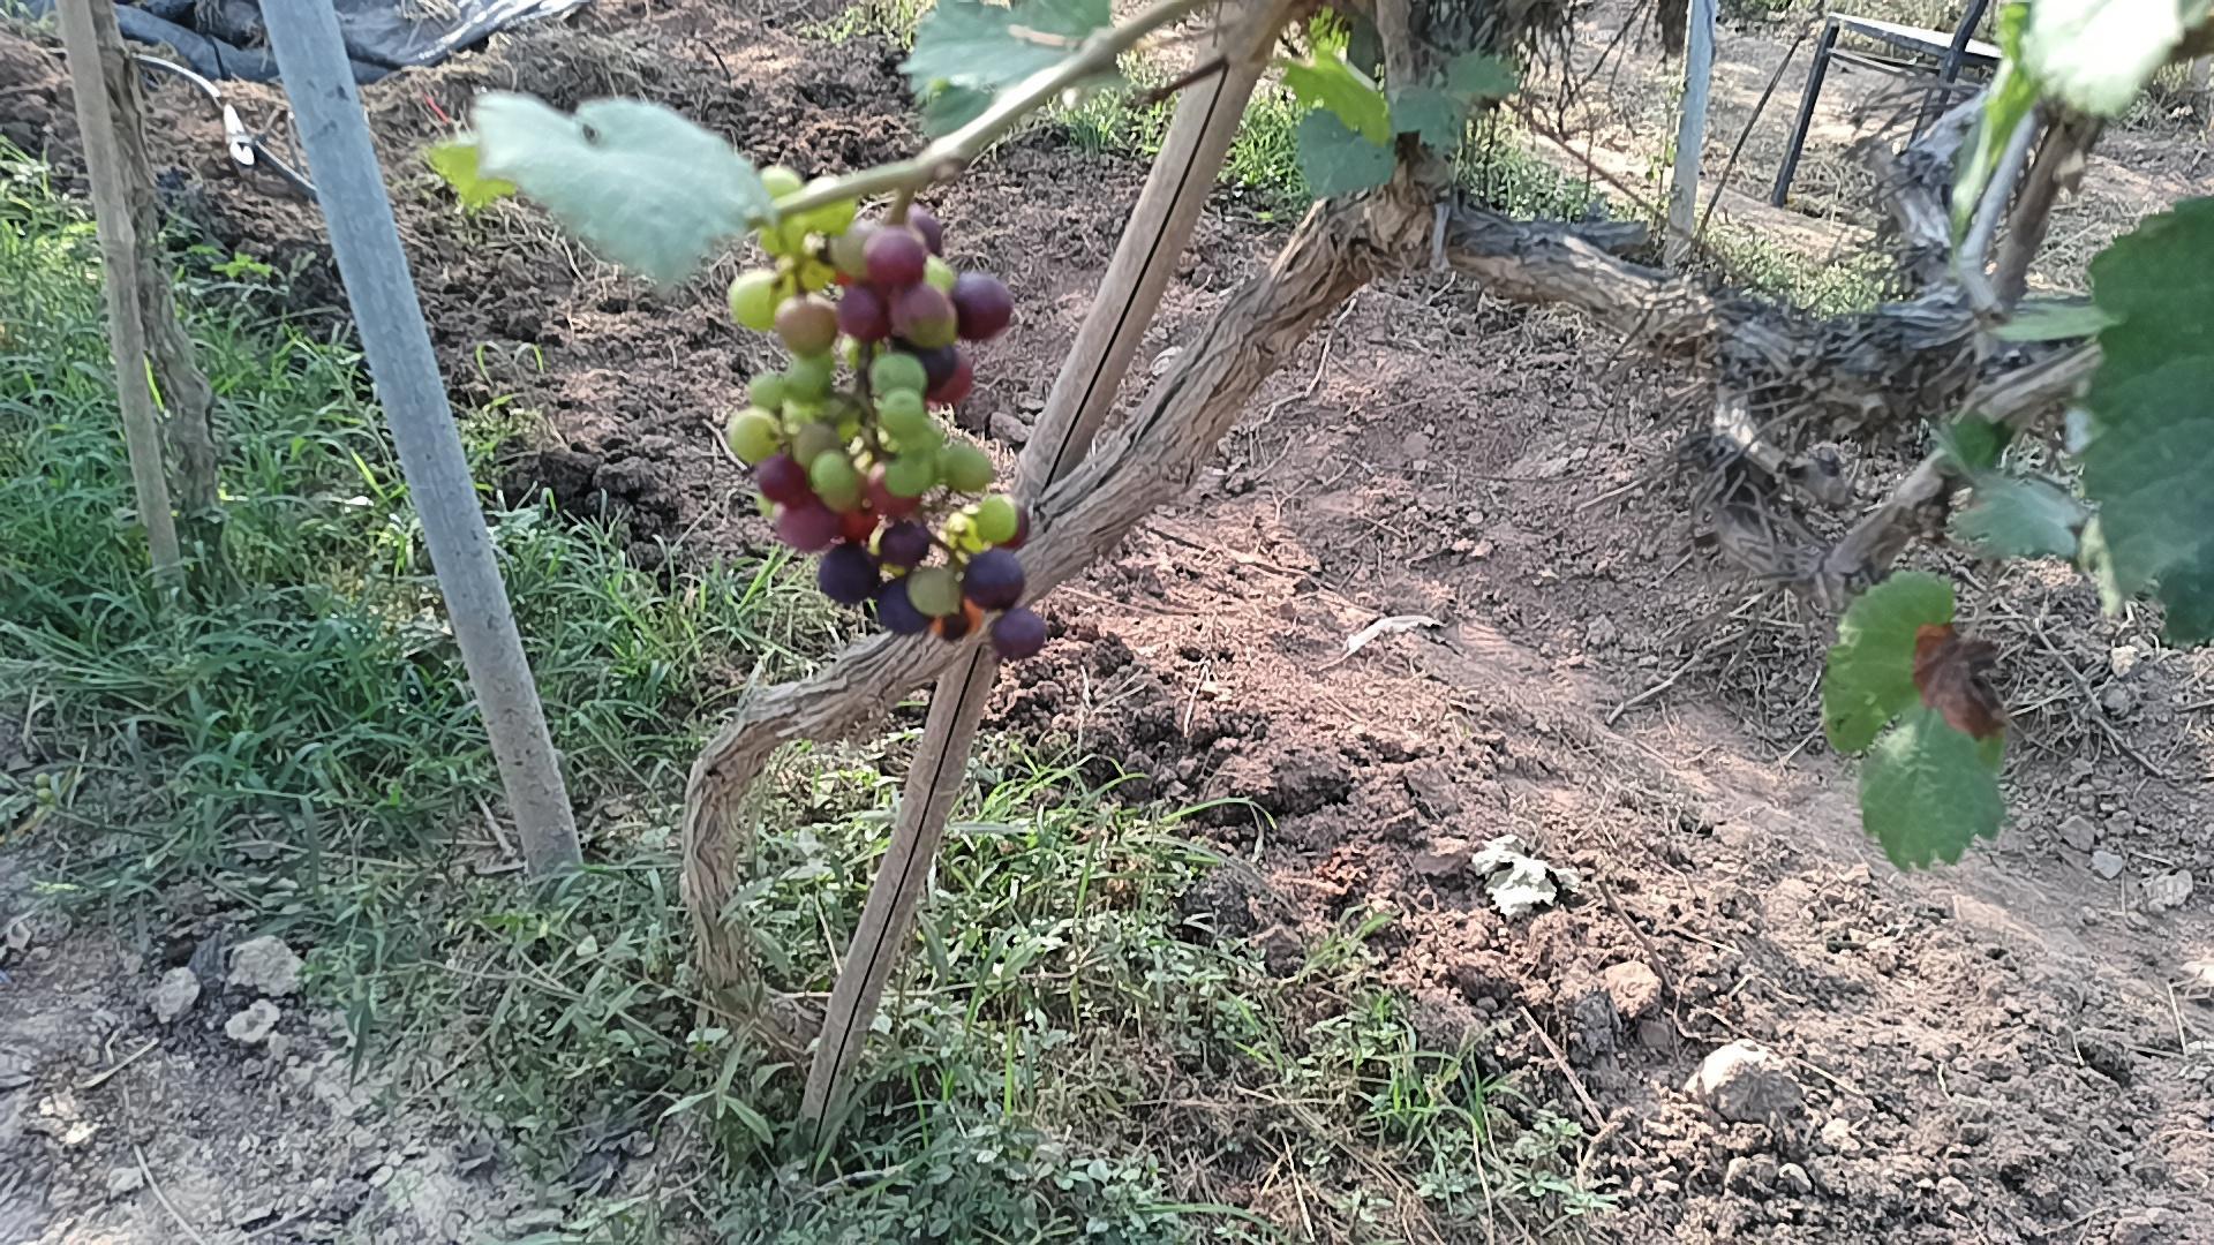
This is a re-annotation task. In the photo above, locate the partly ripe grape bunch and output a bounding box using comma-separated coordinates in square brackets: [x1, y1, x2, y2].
[726, 168, 1042, 658]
